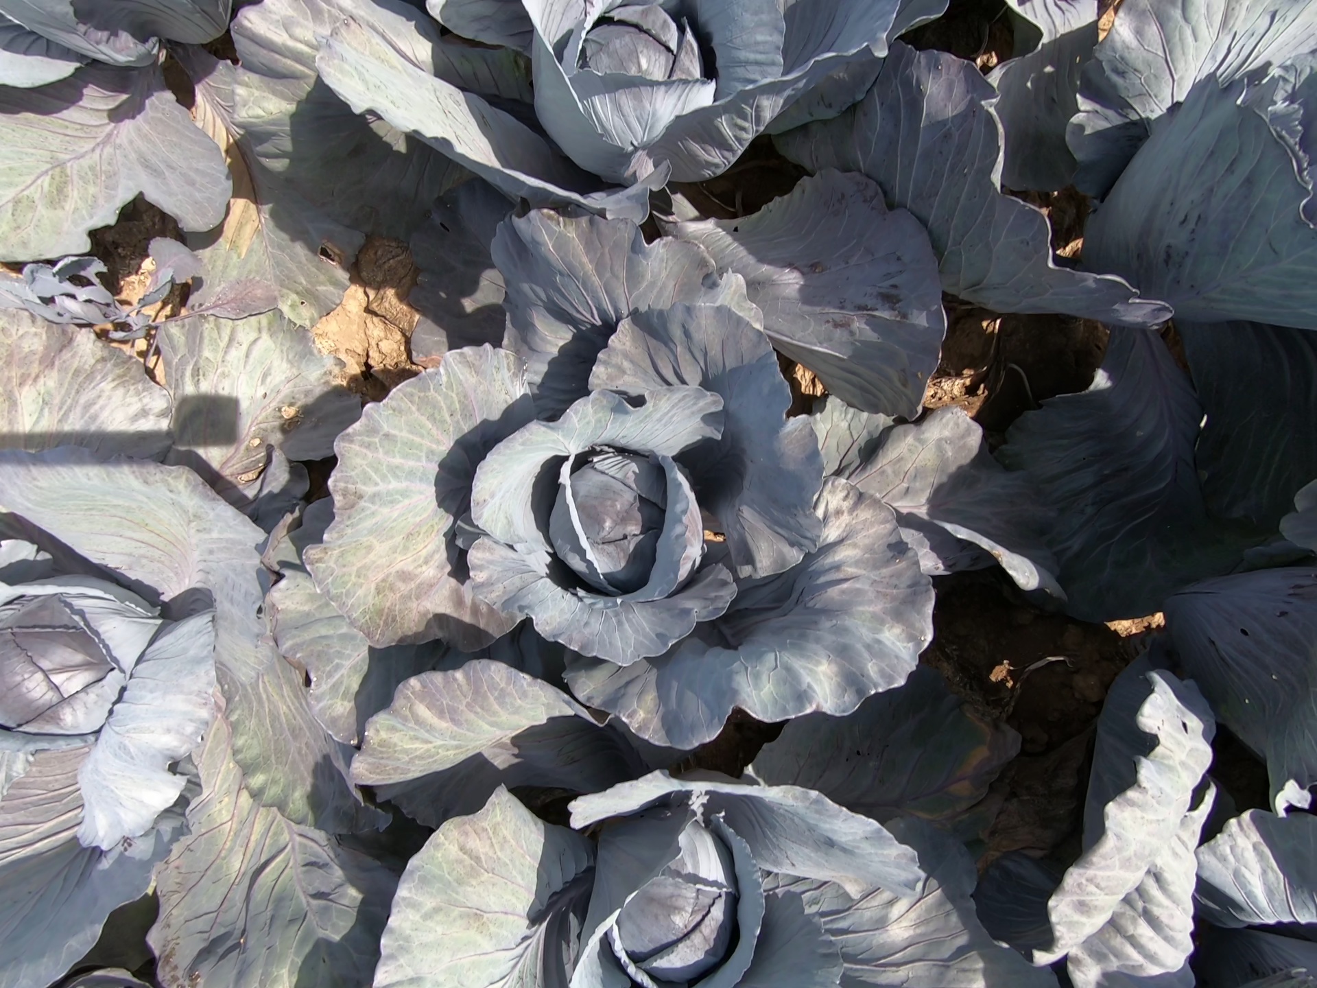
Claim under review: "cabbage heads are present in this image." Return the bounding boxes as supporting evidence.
[549,454,702,589]
[611,816,739,982]
[1,576,169,735]
[563,3,710,158]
